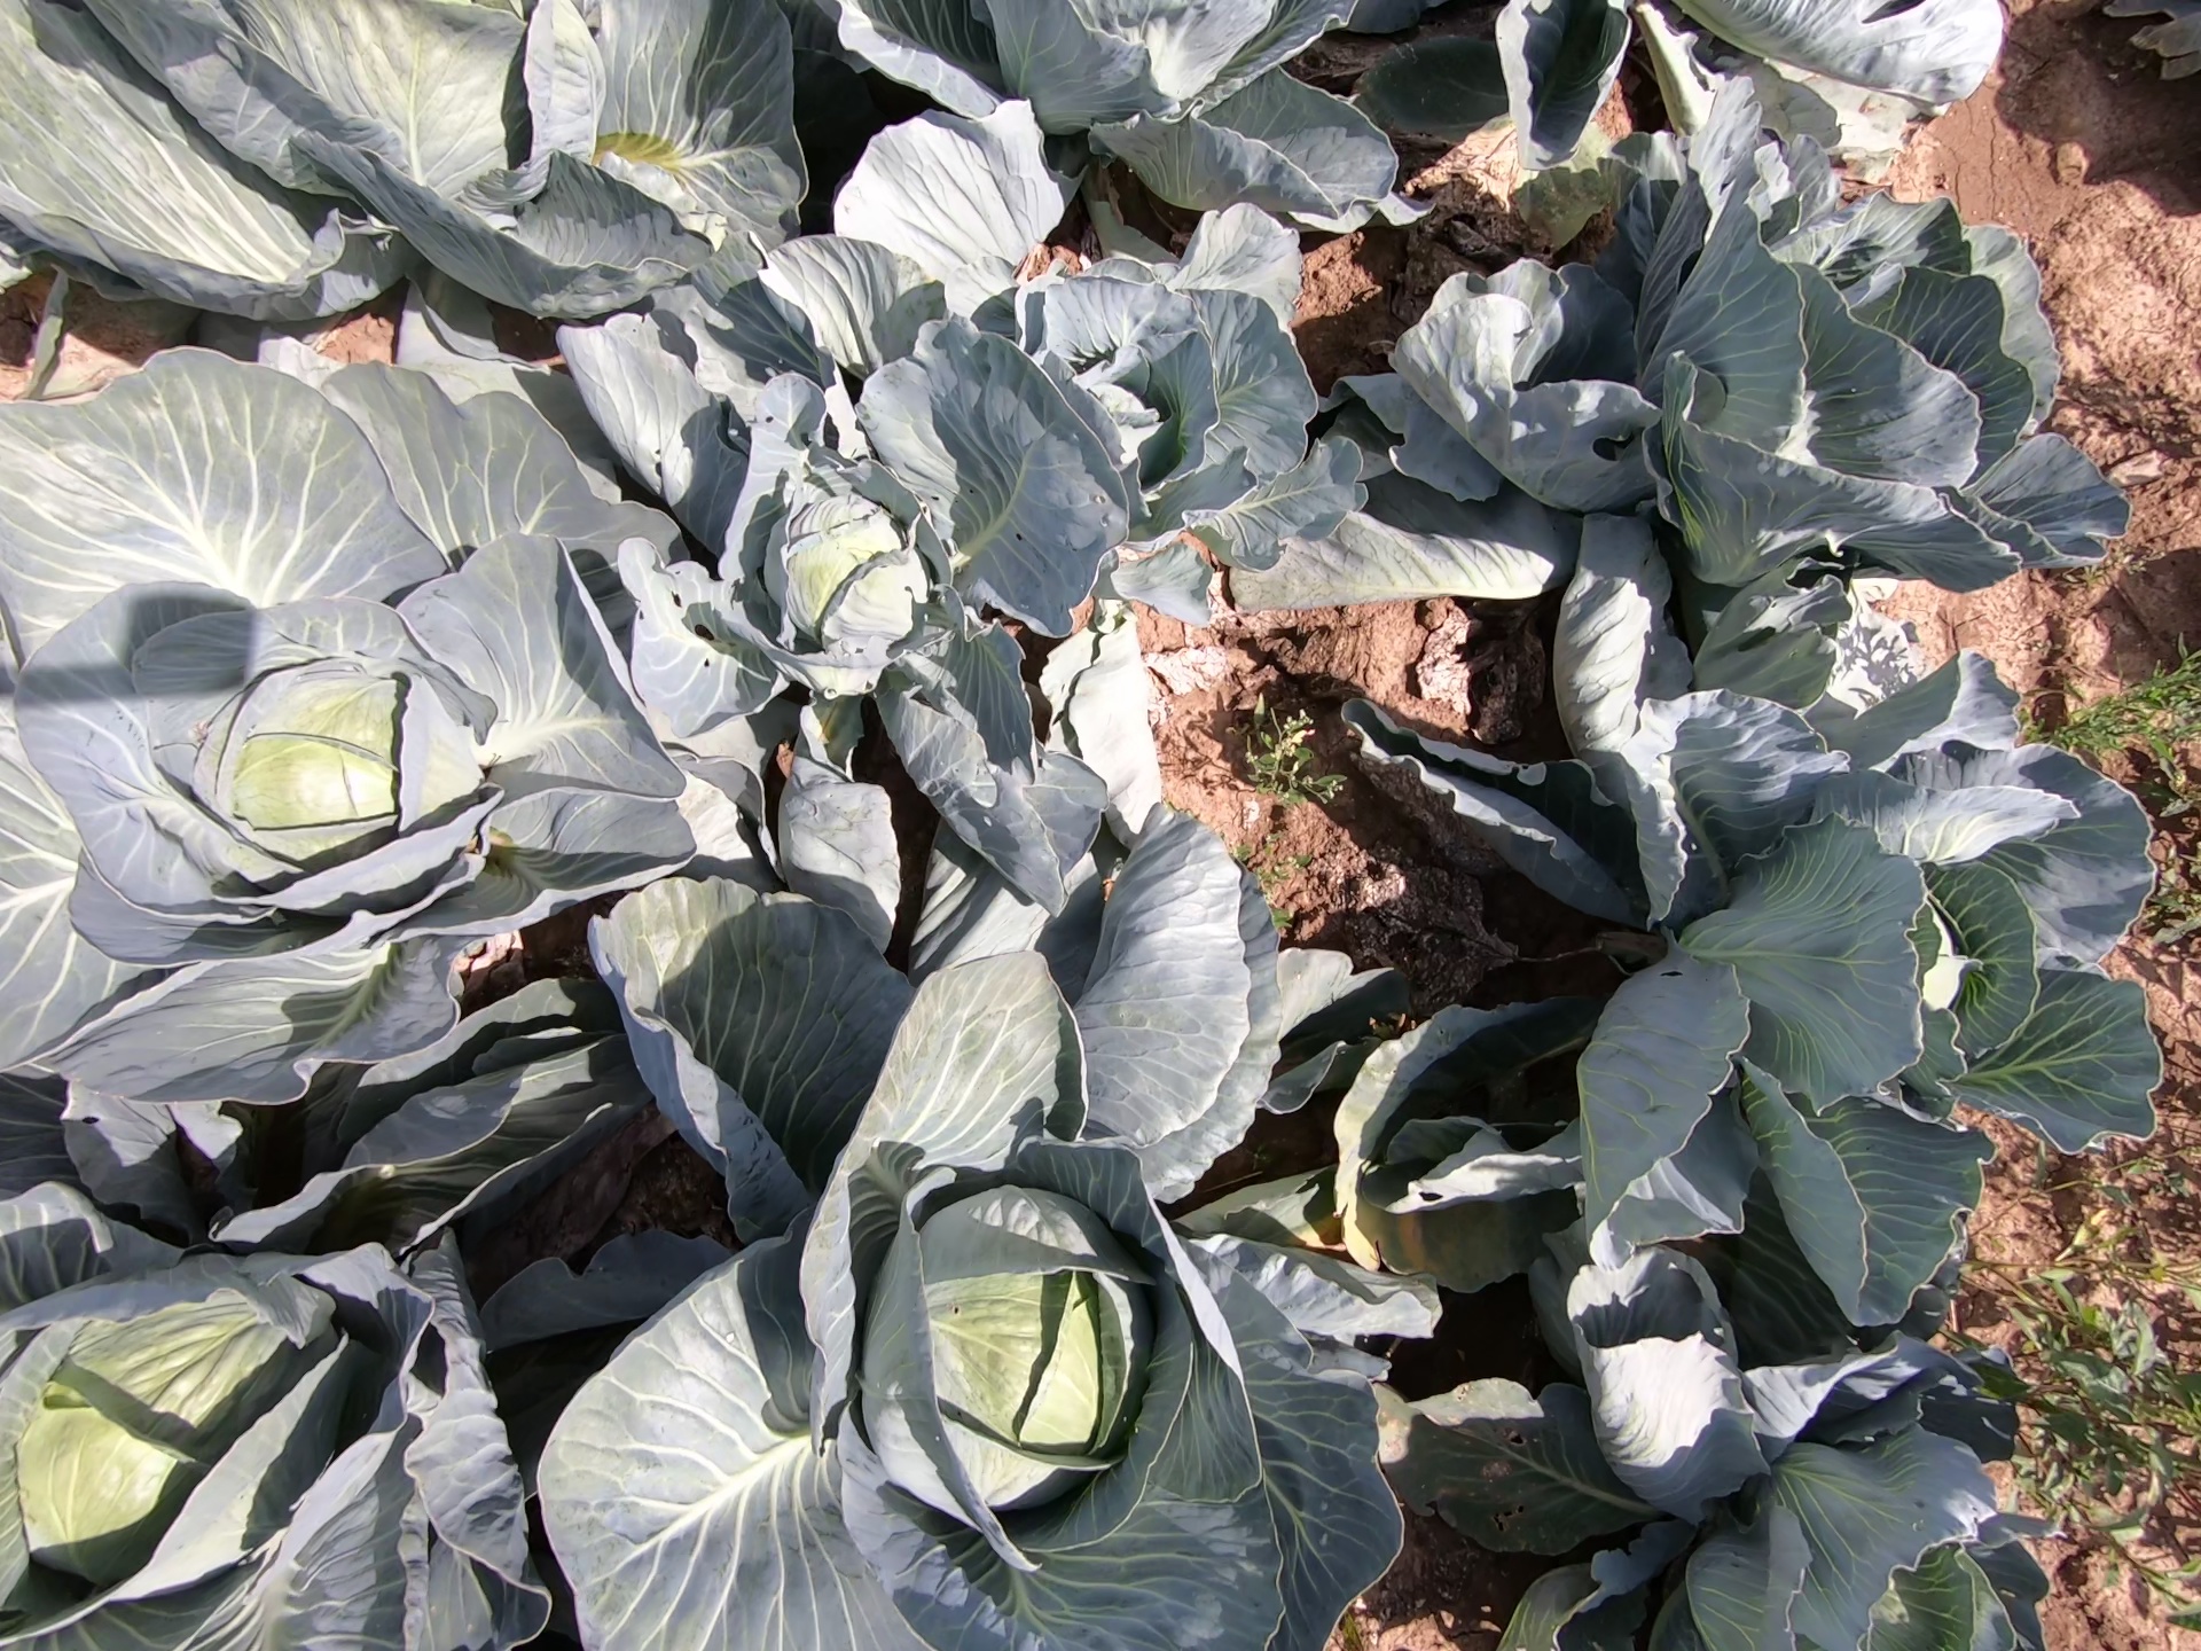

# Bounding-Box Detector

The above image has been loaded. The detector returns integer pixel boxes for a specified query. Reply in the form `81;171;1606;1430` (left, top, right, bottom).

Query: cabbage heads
1804;870;1971;1024
3;1260;347;1589
1791;1481;1967;1649
773;491;930;645
869;1186;1166;1518
196;668;469;909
